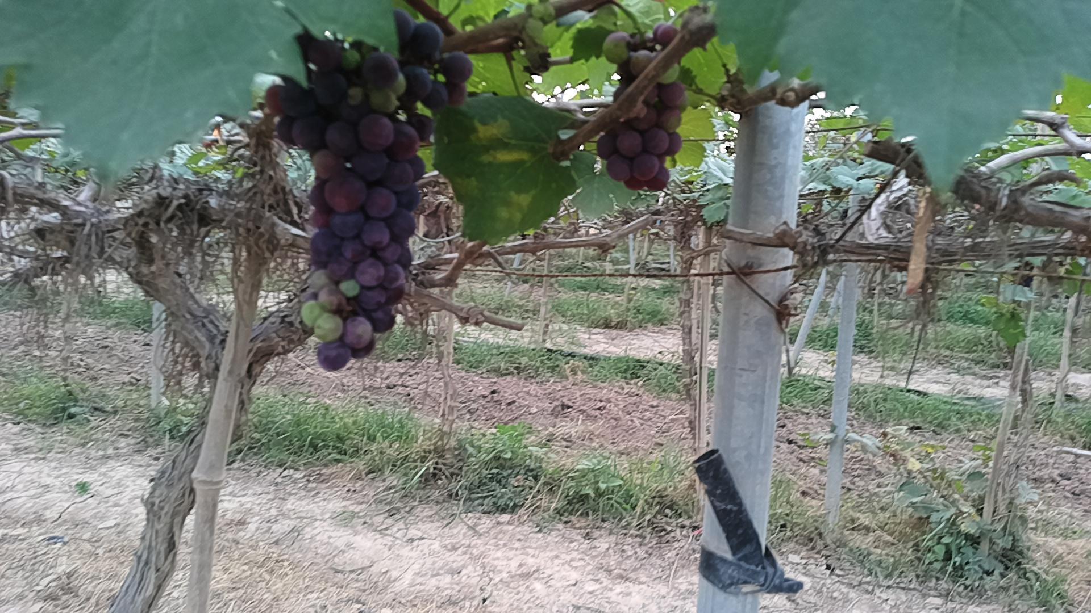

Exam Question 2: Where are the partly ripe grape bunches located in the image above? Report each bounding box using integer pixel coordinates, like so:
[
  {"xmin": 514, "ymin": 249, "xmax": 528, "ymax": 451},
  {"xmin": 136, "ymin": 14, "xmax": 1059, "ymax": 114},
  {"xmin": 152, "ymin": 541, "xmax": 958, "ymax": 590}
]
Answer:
[
  {"xmin": 268, "ymin": 10, "xmax": 472, "ymax": 370},
  {"xmin": 596, "ymin": 24, "xmax": 690, "ymax": 192}
]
